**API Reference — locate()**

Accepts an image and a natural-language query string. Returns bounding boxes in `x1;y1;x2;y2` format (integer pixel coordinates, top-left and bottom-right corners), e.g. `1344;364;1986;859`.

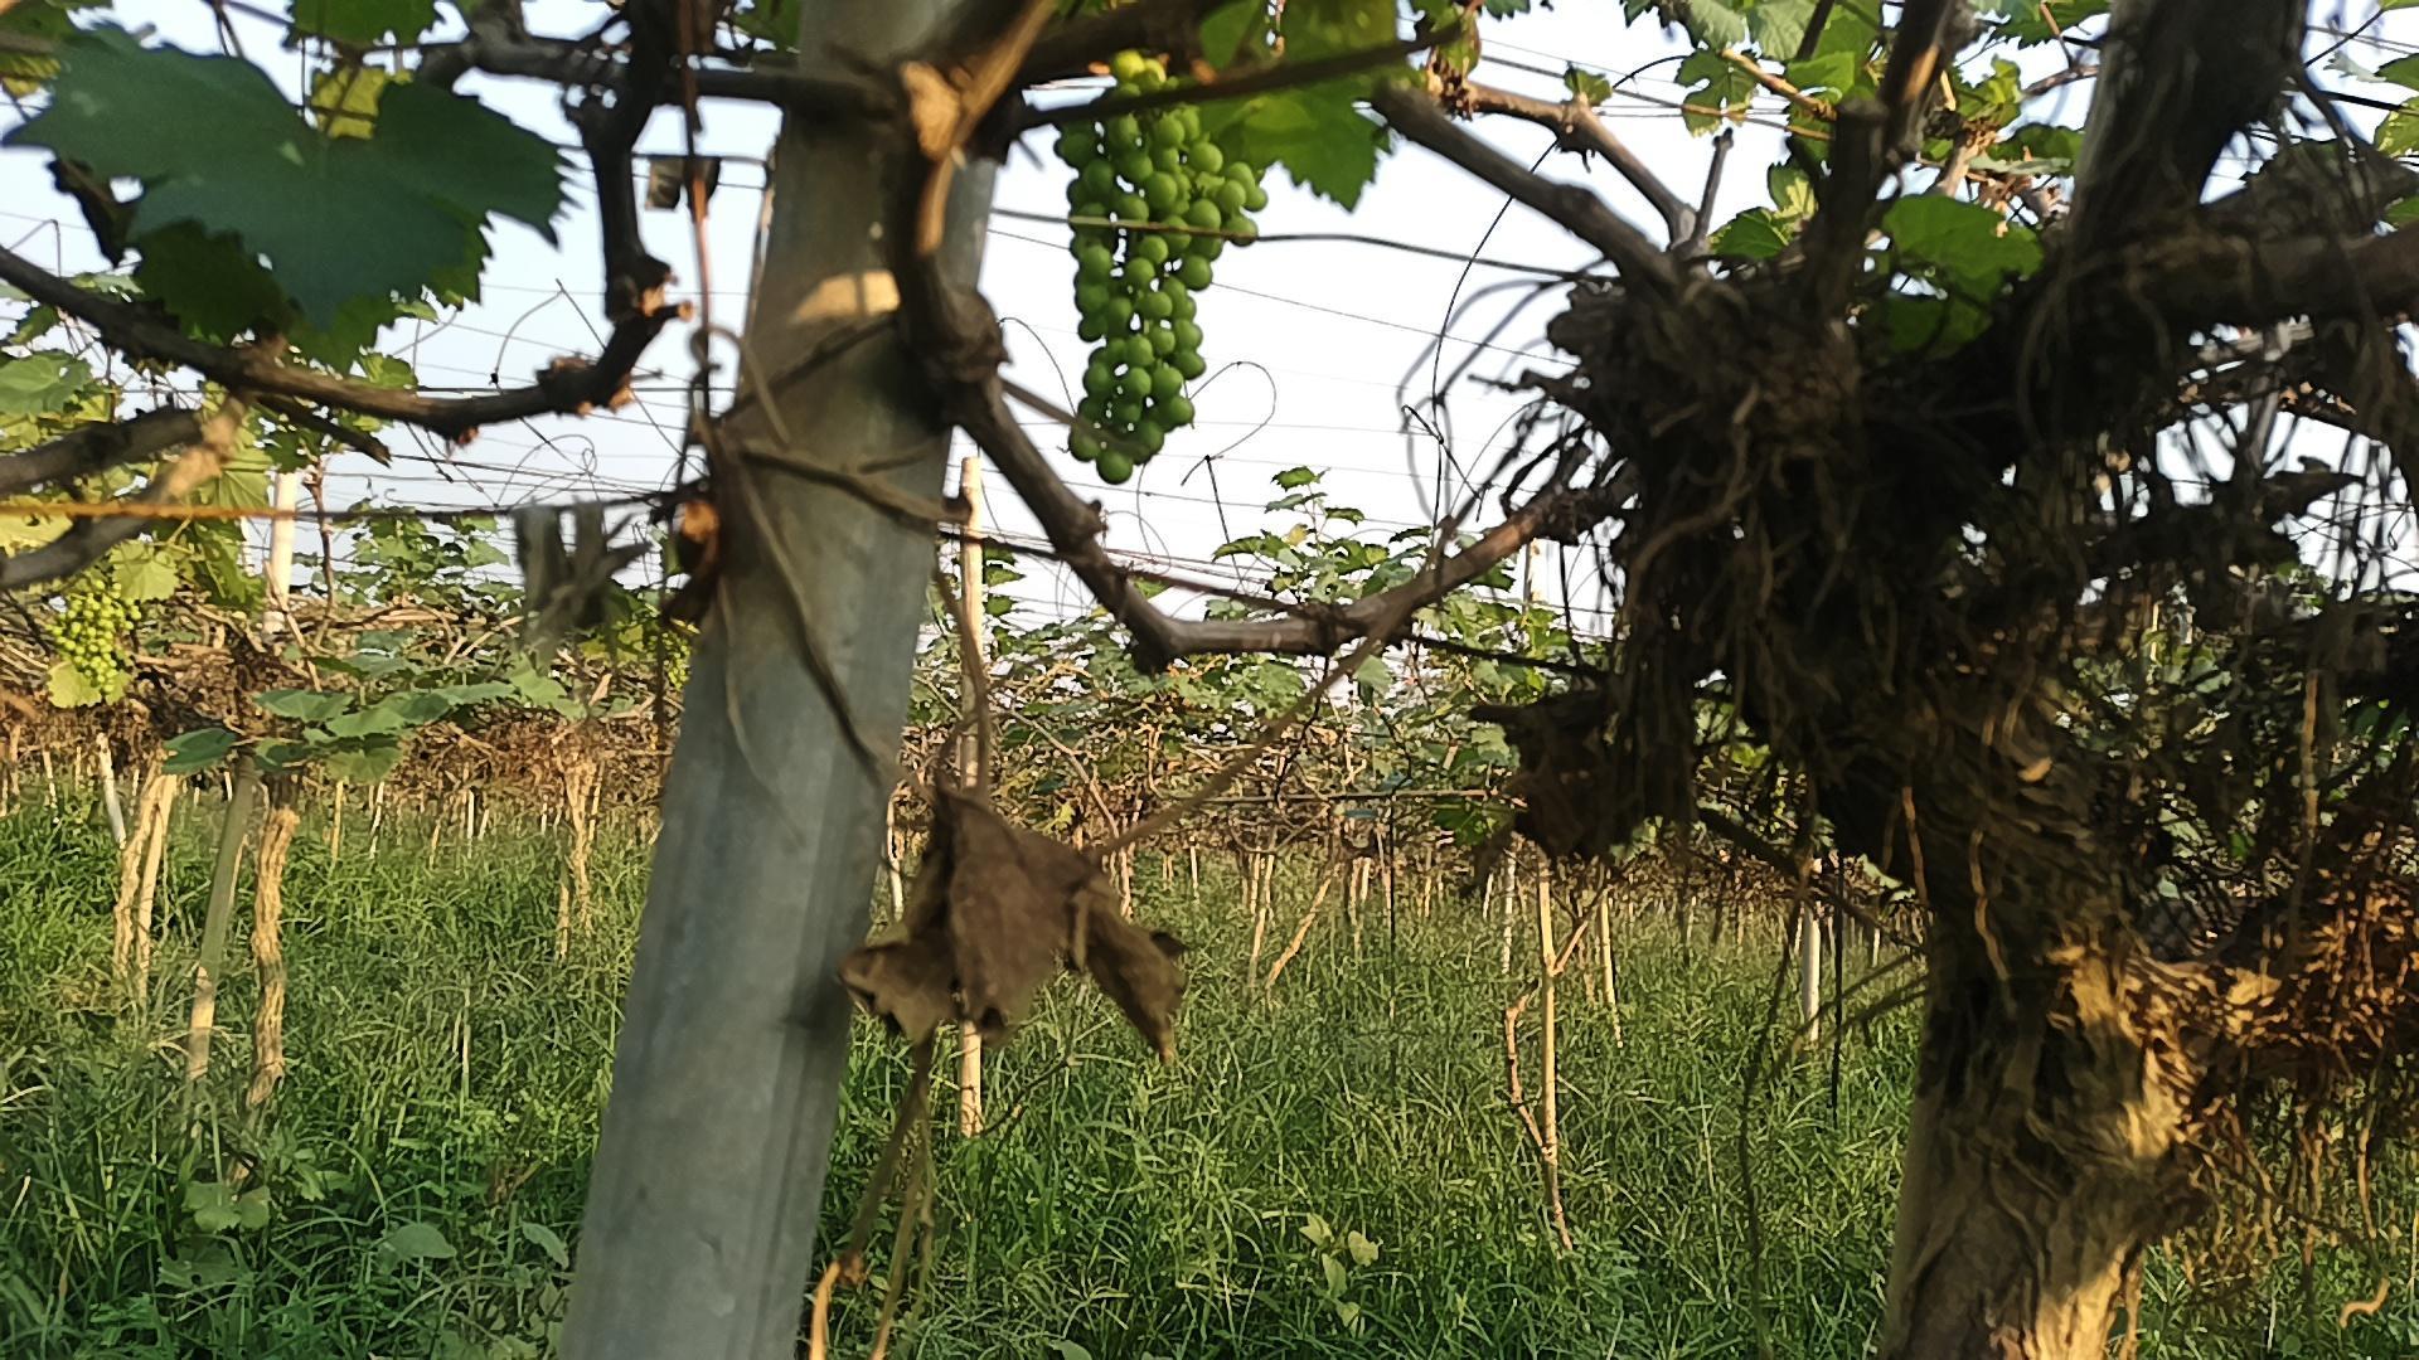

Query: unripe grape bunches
53;564;140;700
1057;107;1264;484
